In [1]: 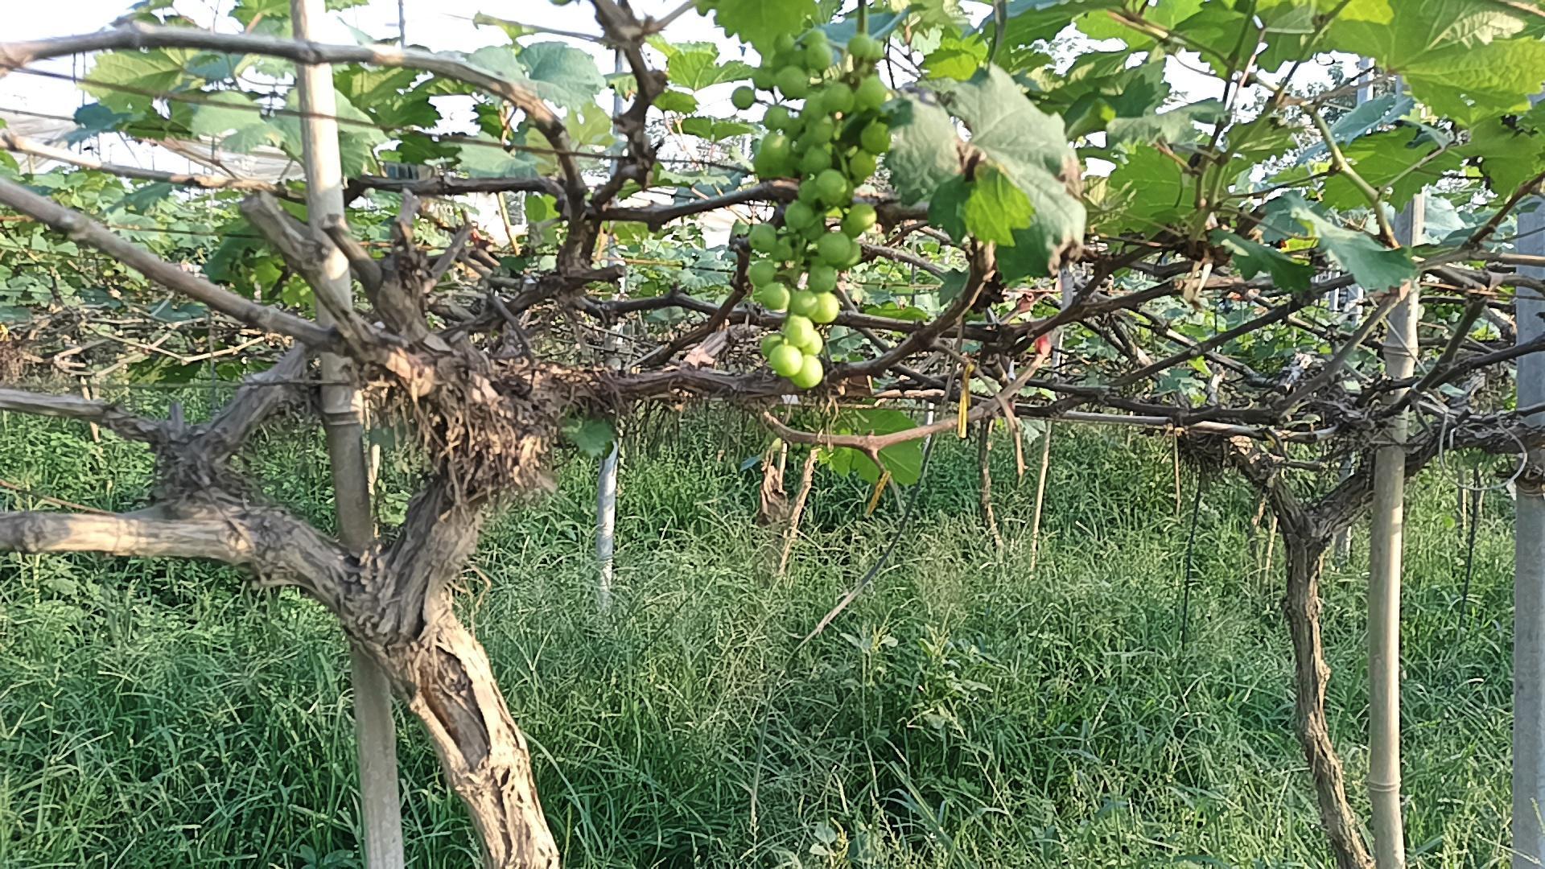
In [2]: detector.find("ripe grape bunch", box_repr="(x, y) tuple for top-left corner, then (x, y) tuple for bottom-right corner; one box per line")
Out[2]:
(732, 29), (894, 388)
